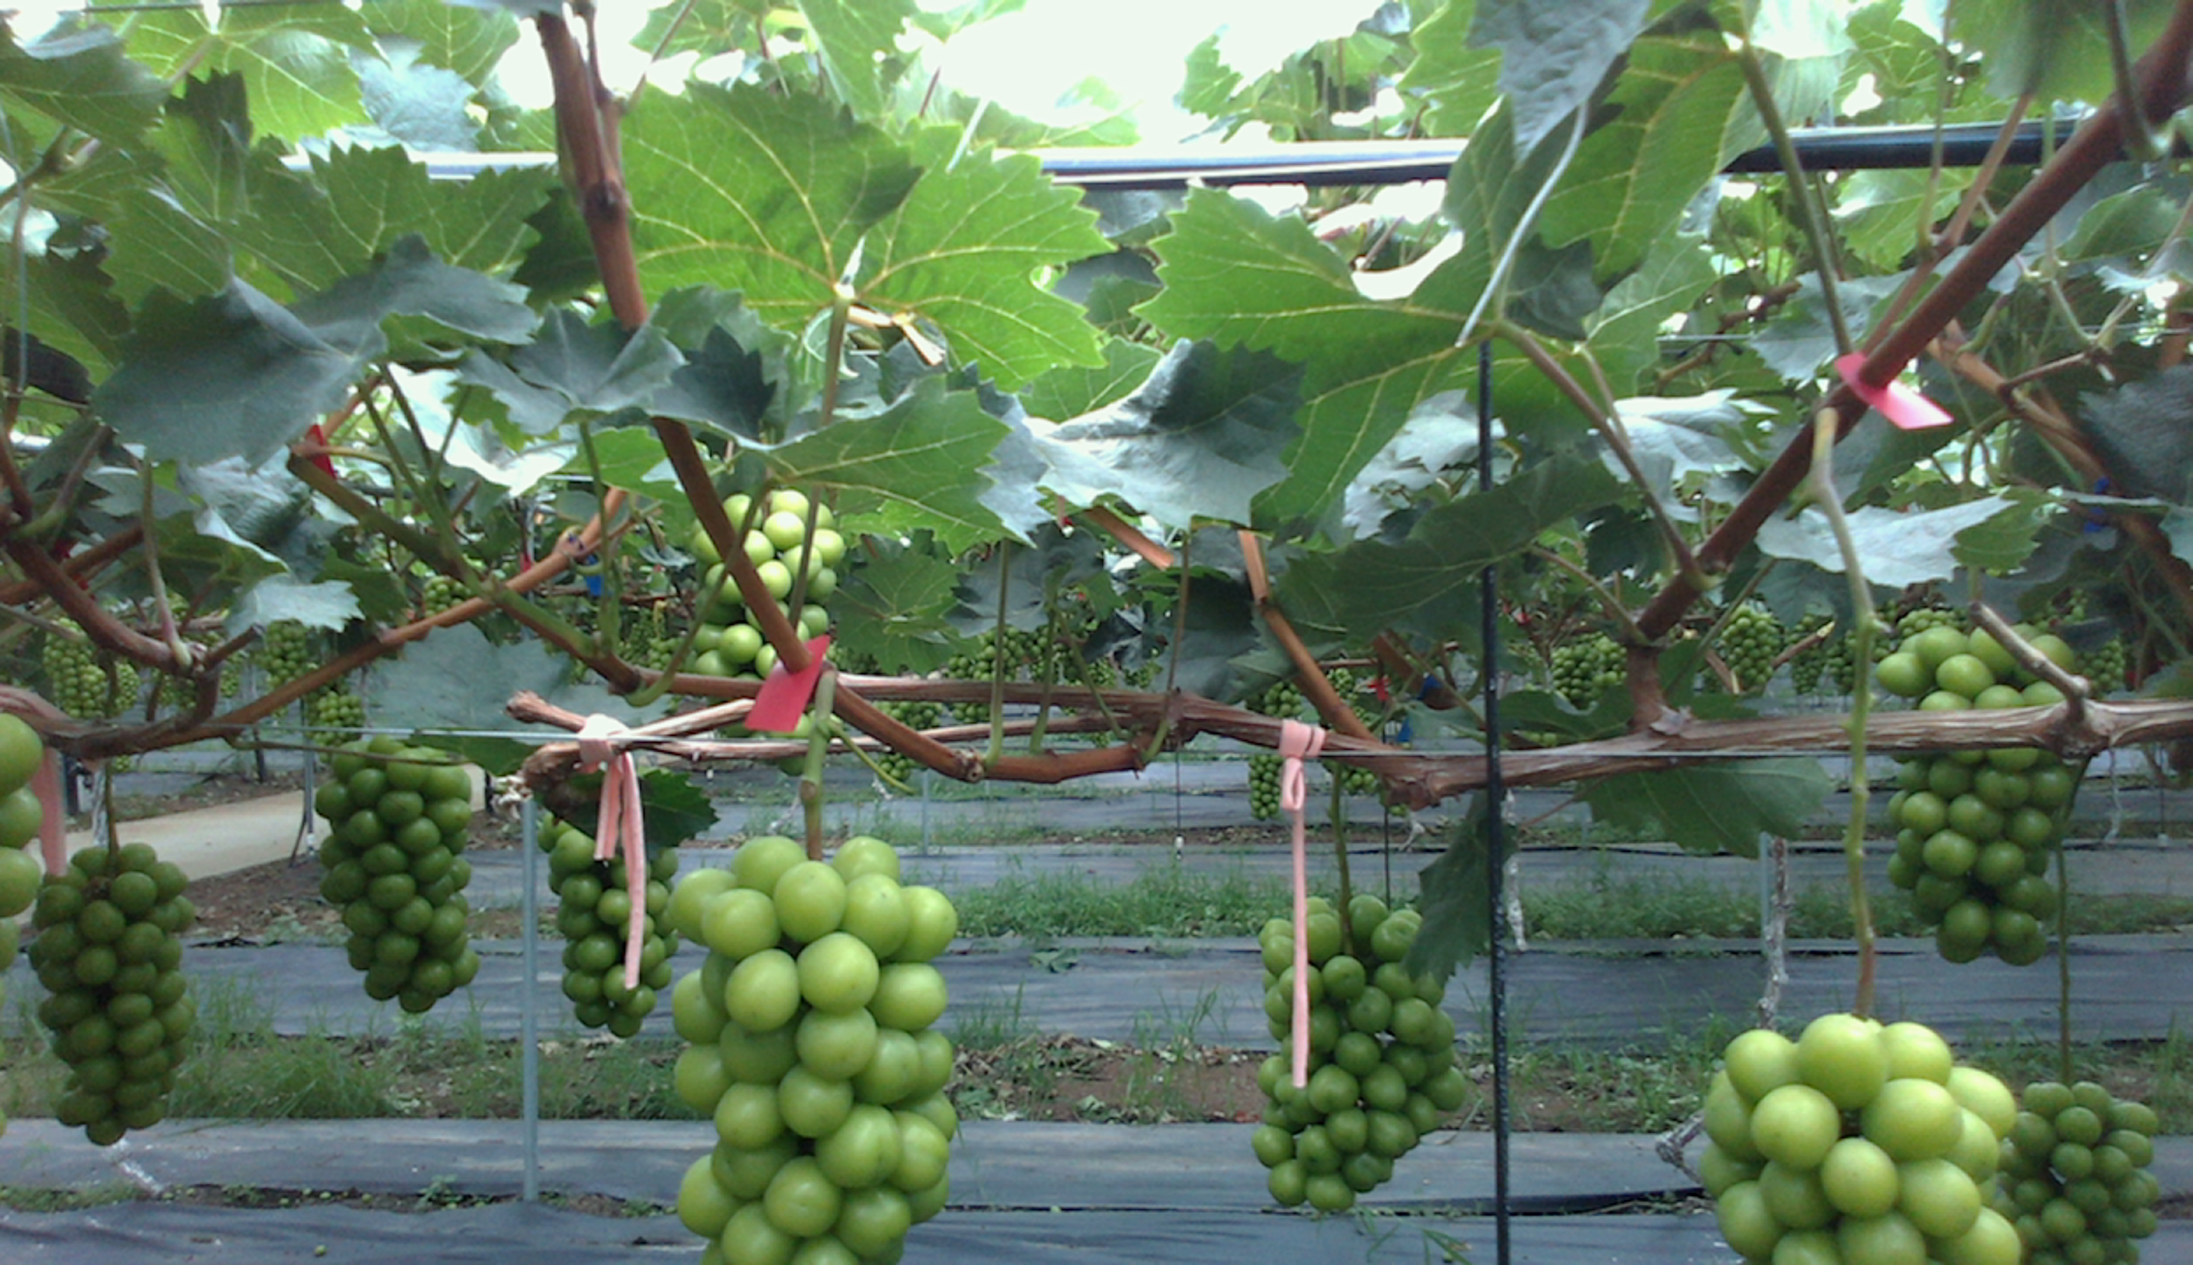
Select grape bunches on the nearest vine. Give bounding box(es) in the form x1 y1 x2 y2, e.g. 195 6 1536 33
669 833 959 1261
1697 1014 2026 1263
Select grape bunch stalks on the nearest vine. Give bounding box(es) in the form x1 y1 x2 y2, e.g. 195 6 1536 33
798 682 835 857
1787 415 1893 1014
